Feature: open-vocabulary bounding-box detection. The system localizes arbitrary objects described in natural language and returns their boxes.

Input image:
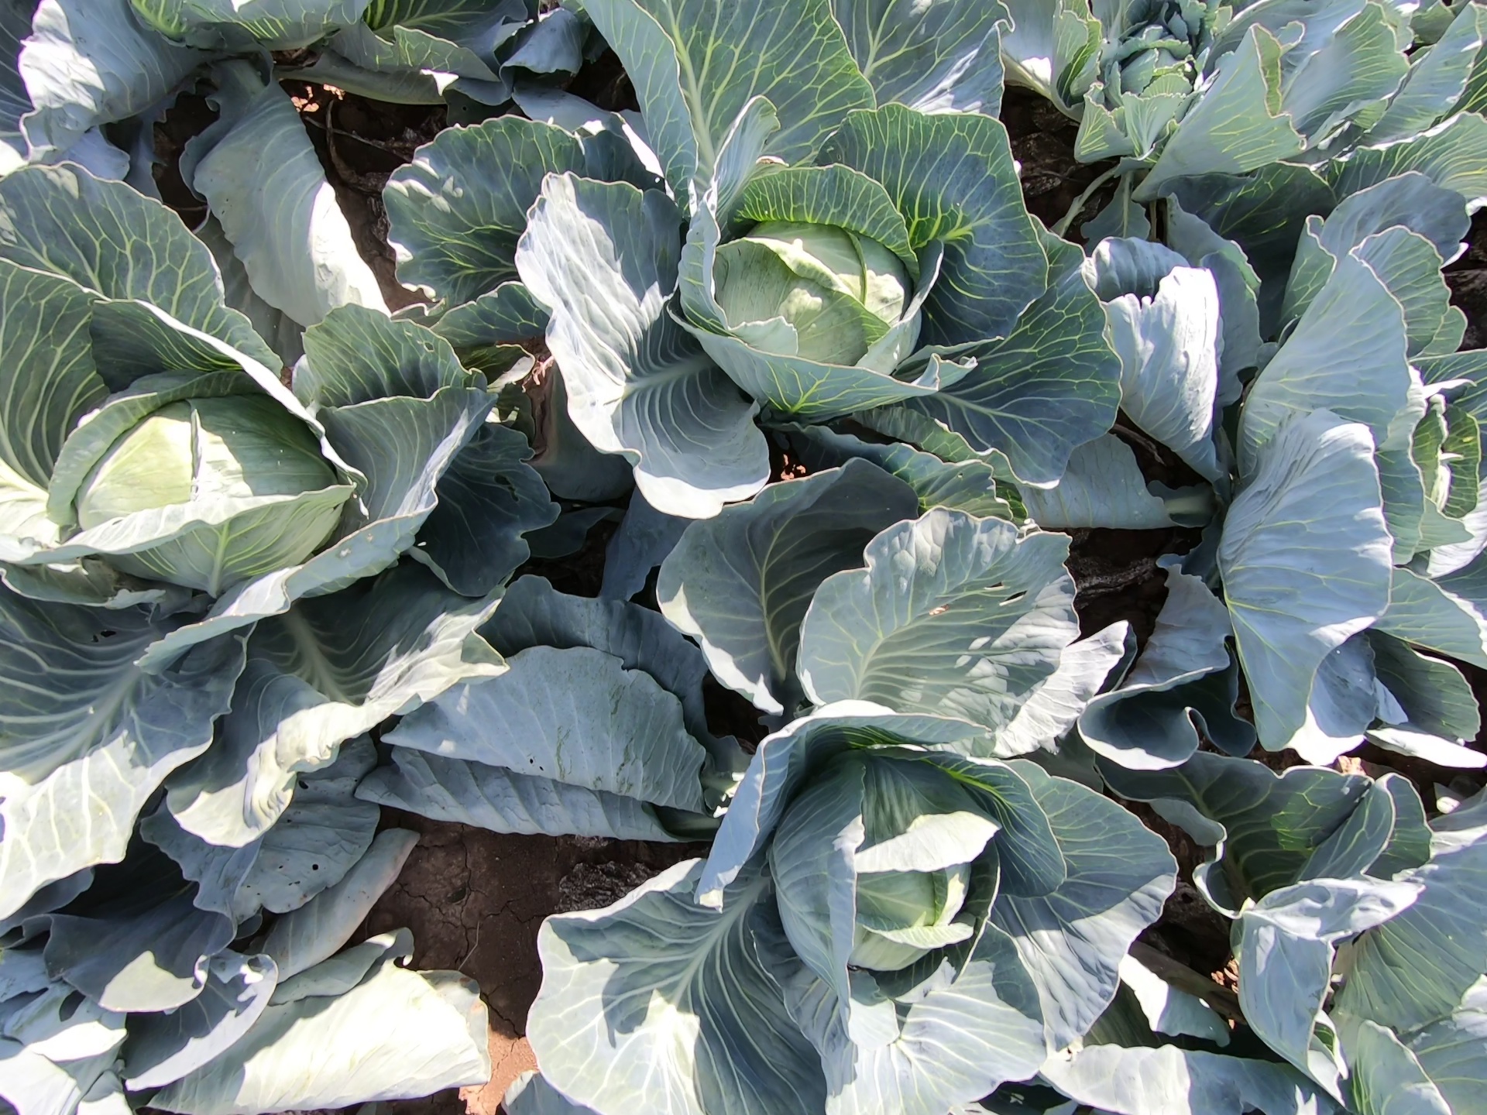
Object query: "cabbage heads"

[1127,45,1176,104]
[716,203,906,386]
[71,396,337,567]
[801,763,970,973]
